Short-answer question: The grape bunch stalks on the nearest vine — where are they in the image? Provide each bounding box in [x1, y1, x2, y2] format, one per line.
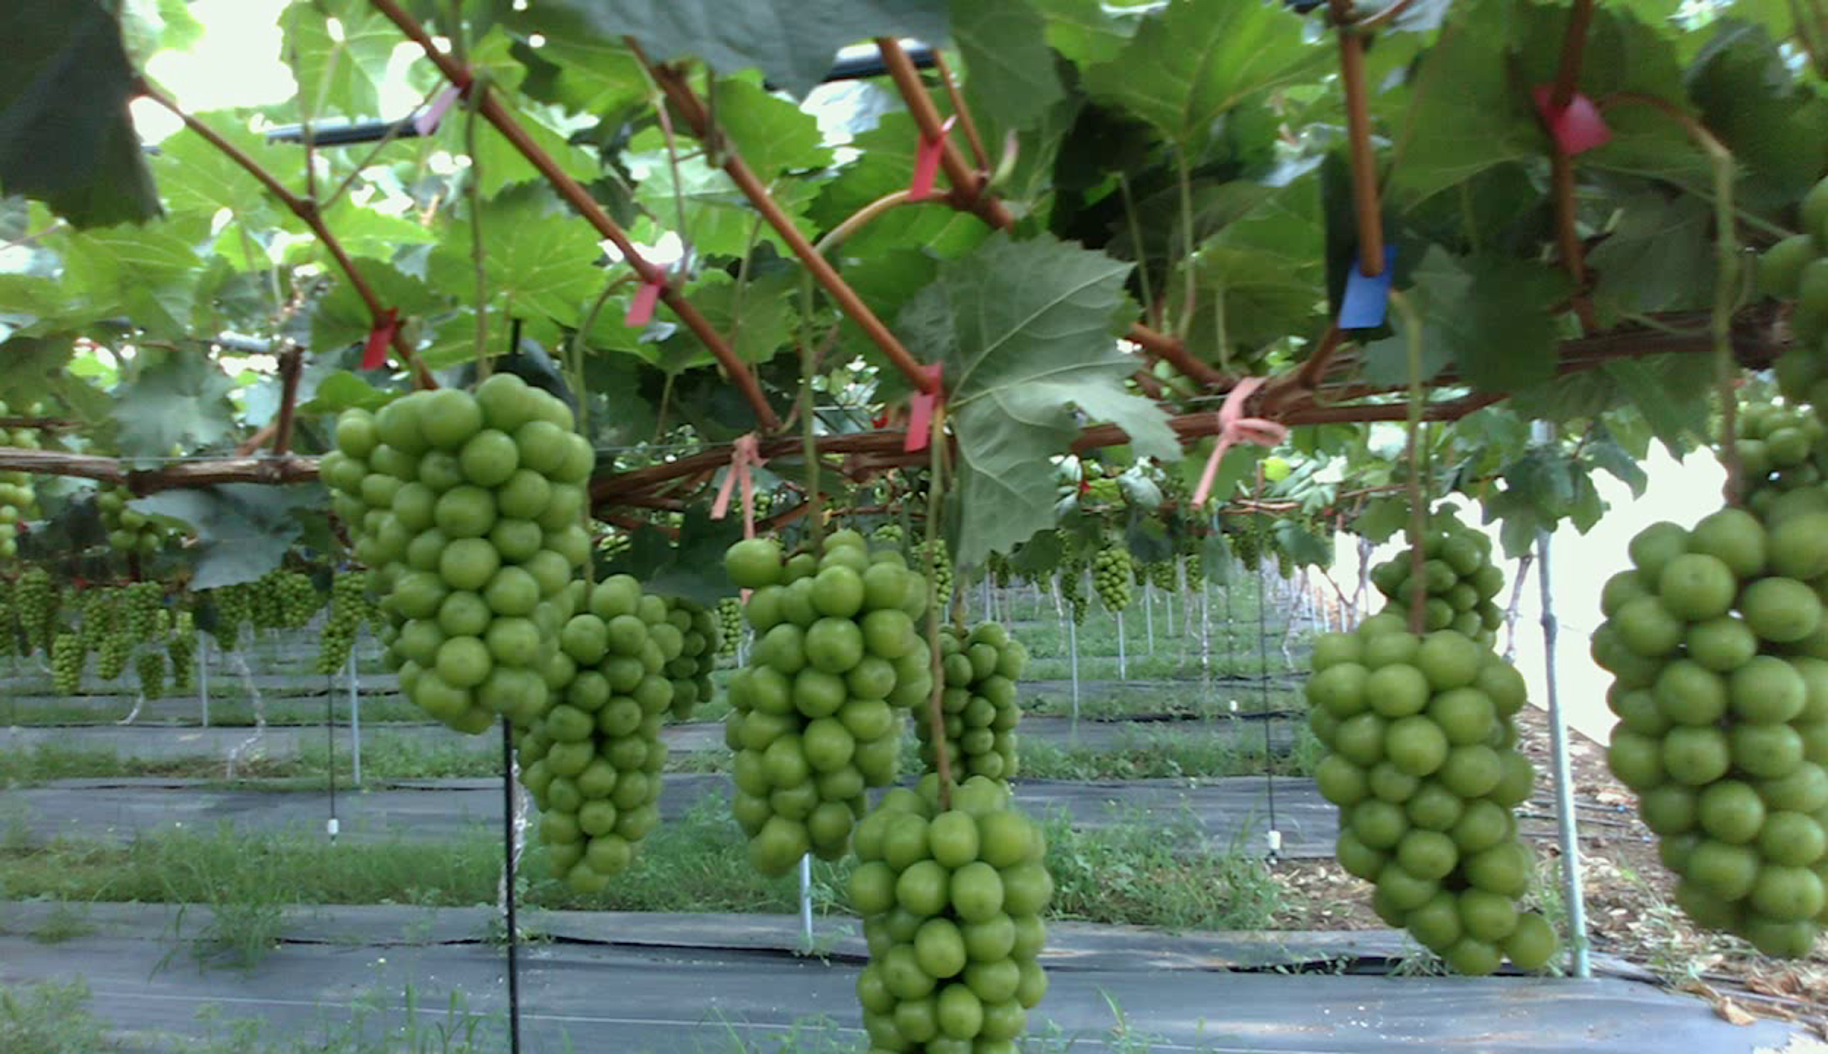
[798, 266, 825, 562]
[464, 70, 495, 385]
[1392, 291, 1425, 634]
[582, 559, 593, 608]
[924, 401, 949, 810]
[1598, 88, 1742, 507]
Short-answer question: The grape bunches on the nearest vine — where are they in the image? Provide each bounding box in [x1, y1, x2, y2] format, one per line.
[1305, 612, 1558, 975]
[848, 771, 1053, 1053]
[514, 574, 683, 894]
[725, 530, 929, 878]
[374, 375, 595, 735]
[1592, 483, 1827, 962]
